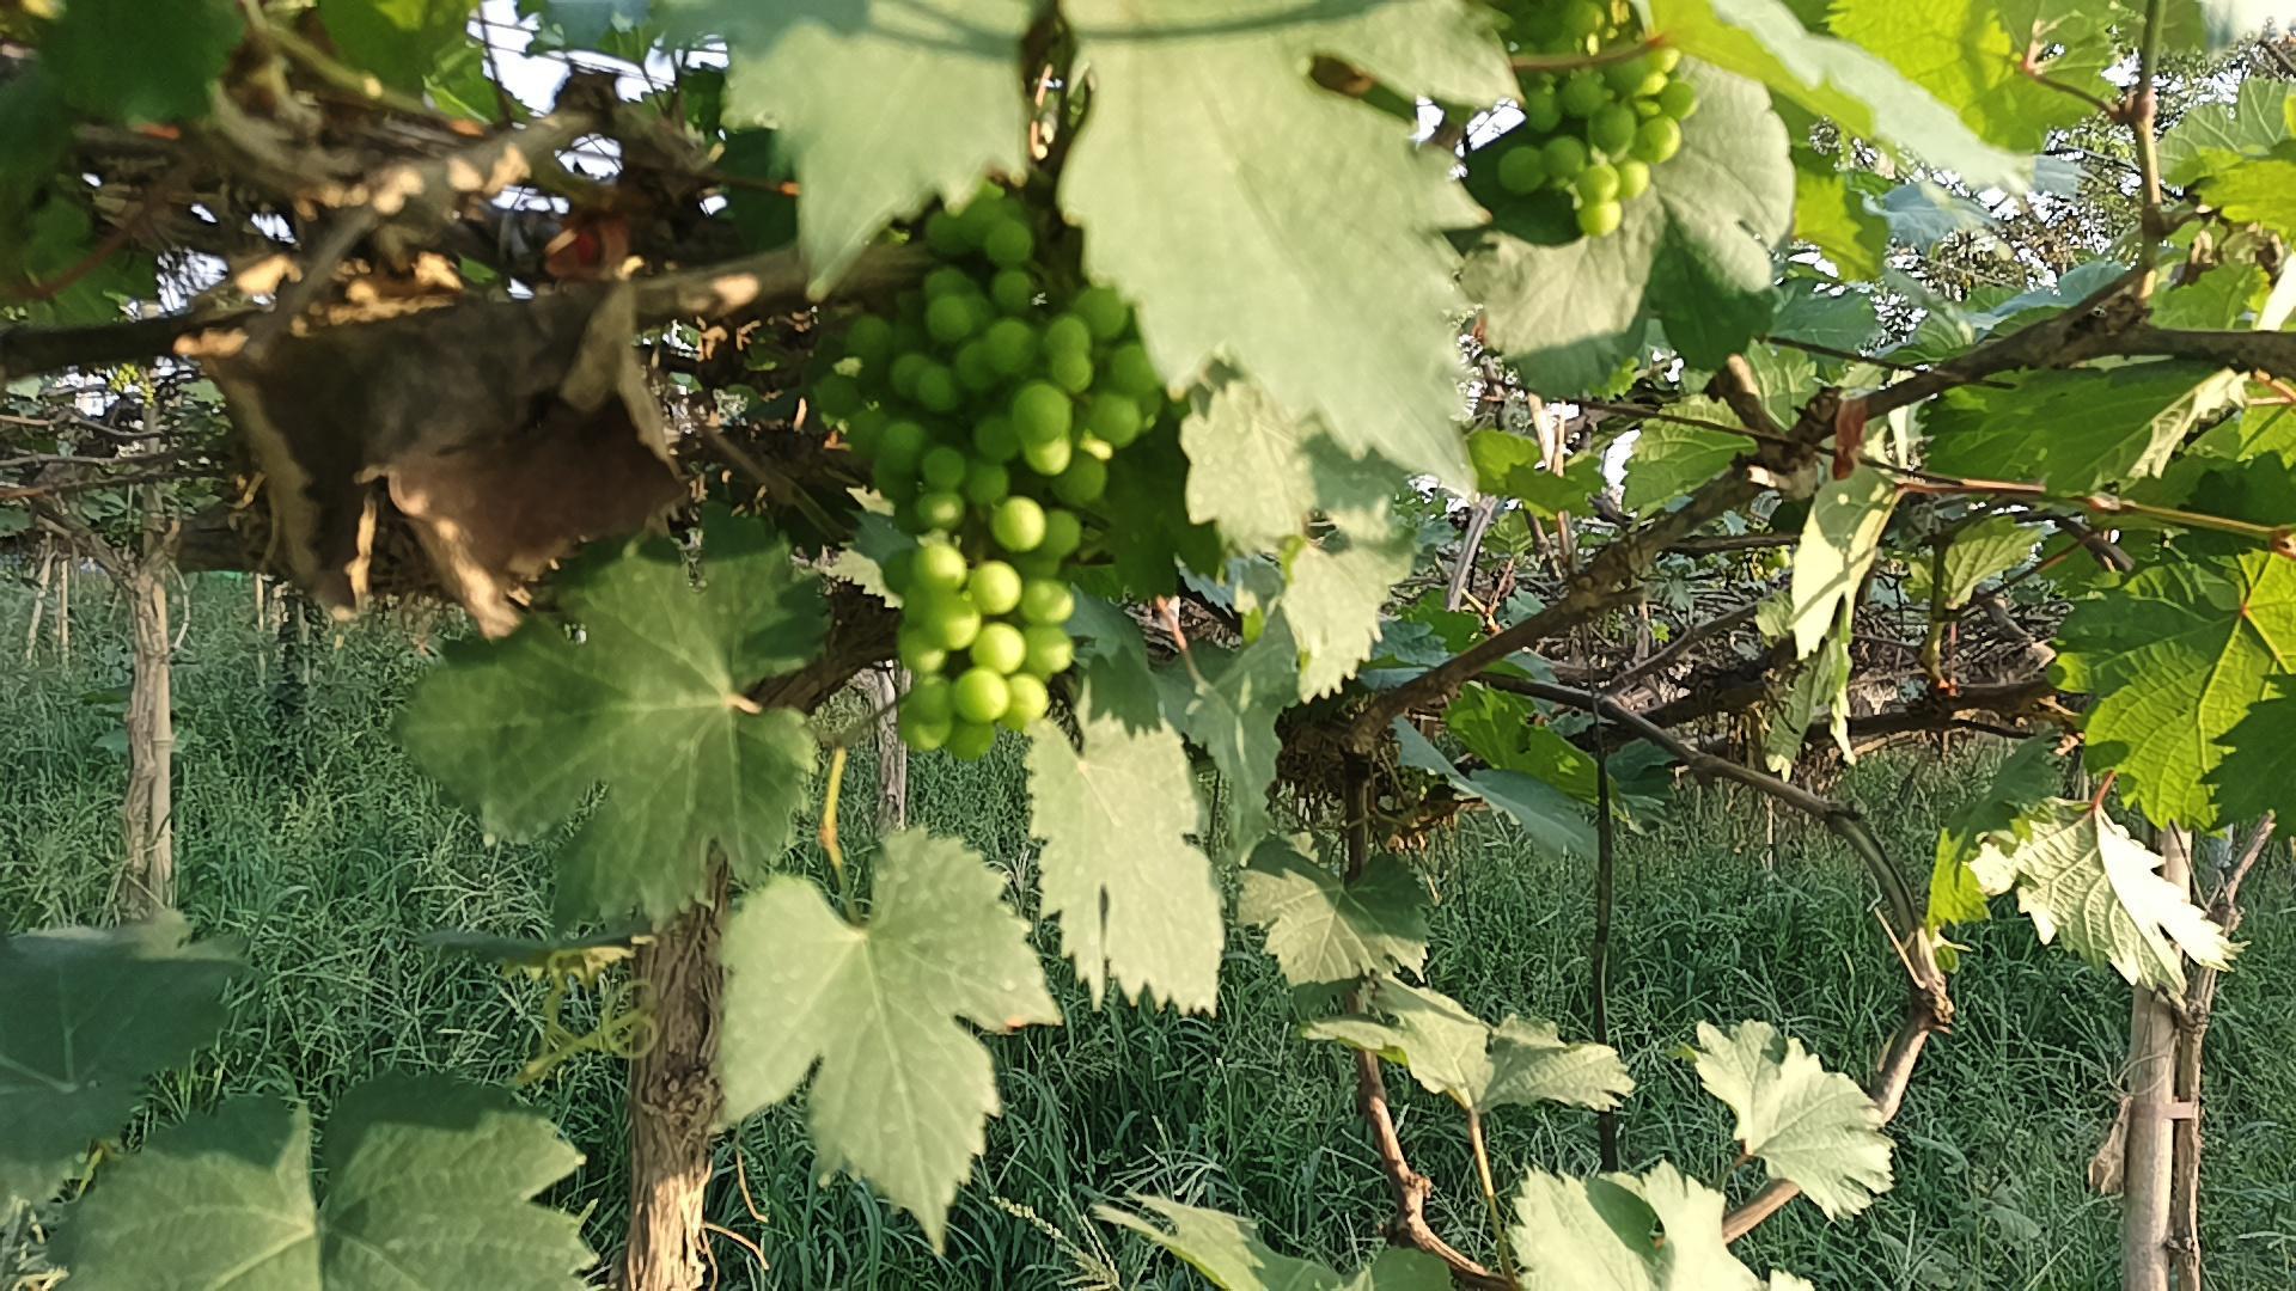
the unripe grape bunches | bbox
[1497,0,1696,234]
[817,184,1164,758]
